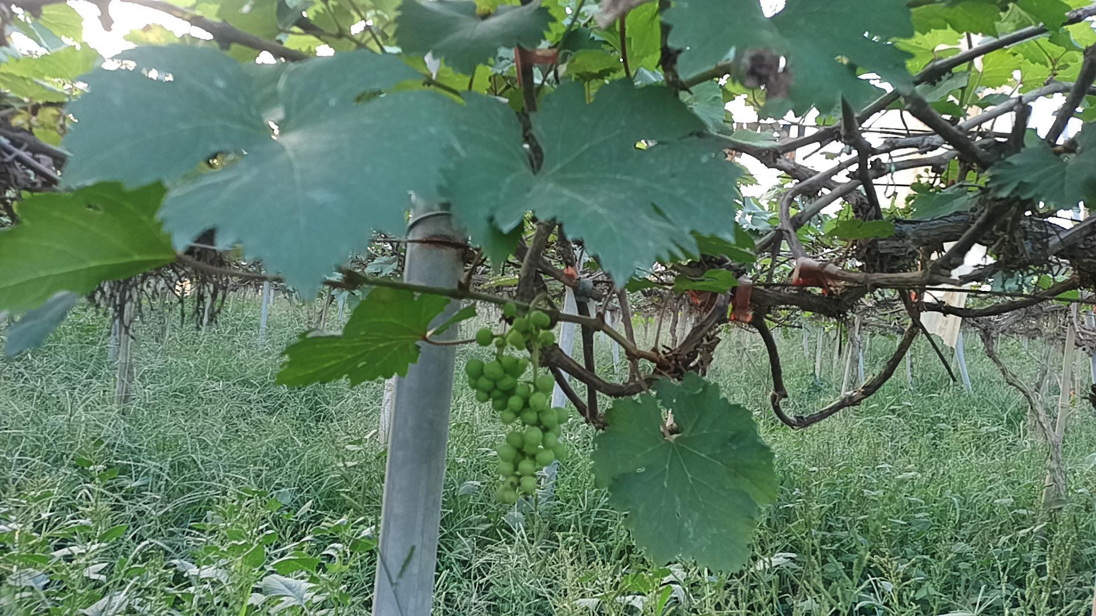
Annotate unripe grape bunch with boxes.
[465,301,567,504]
